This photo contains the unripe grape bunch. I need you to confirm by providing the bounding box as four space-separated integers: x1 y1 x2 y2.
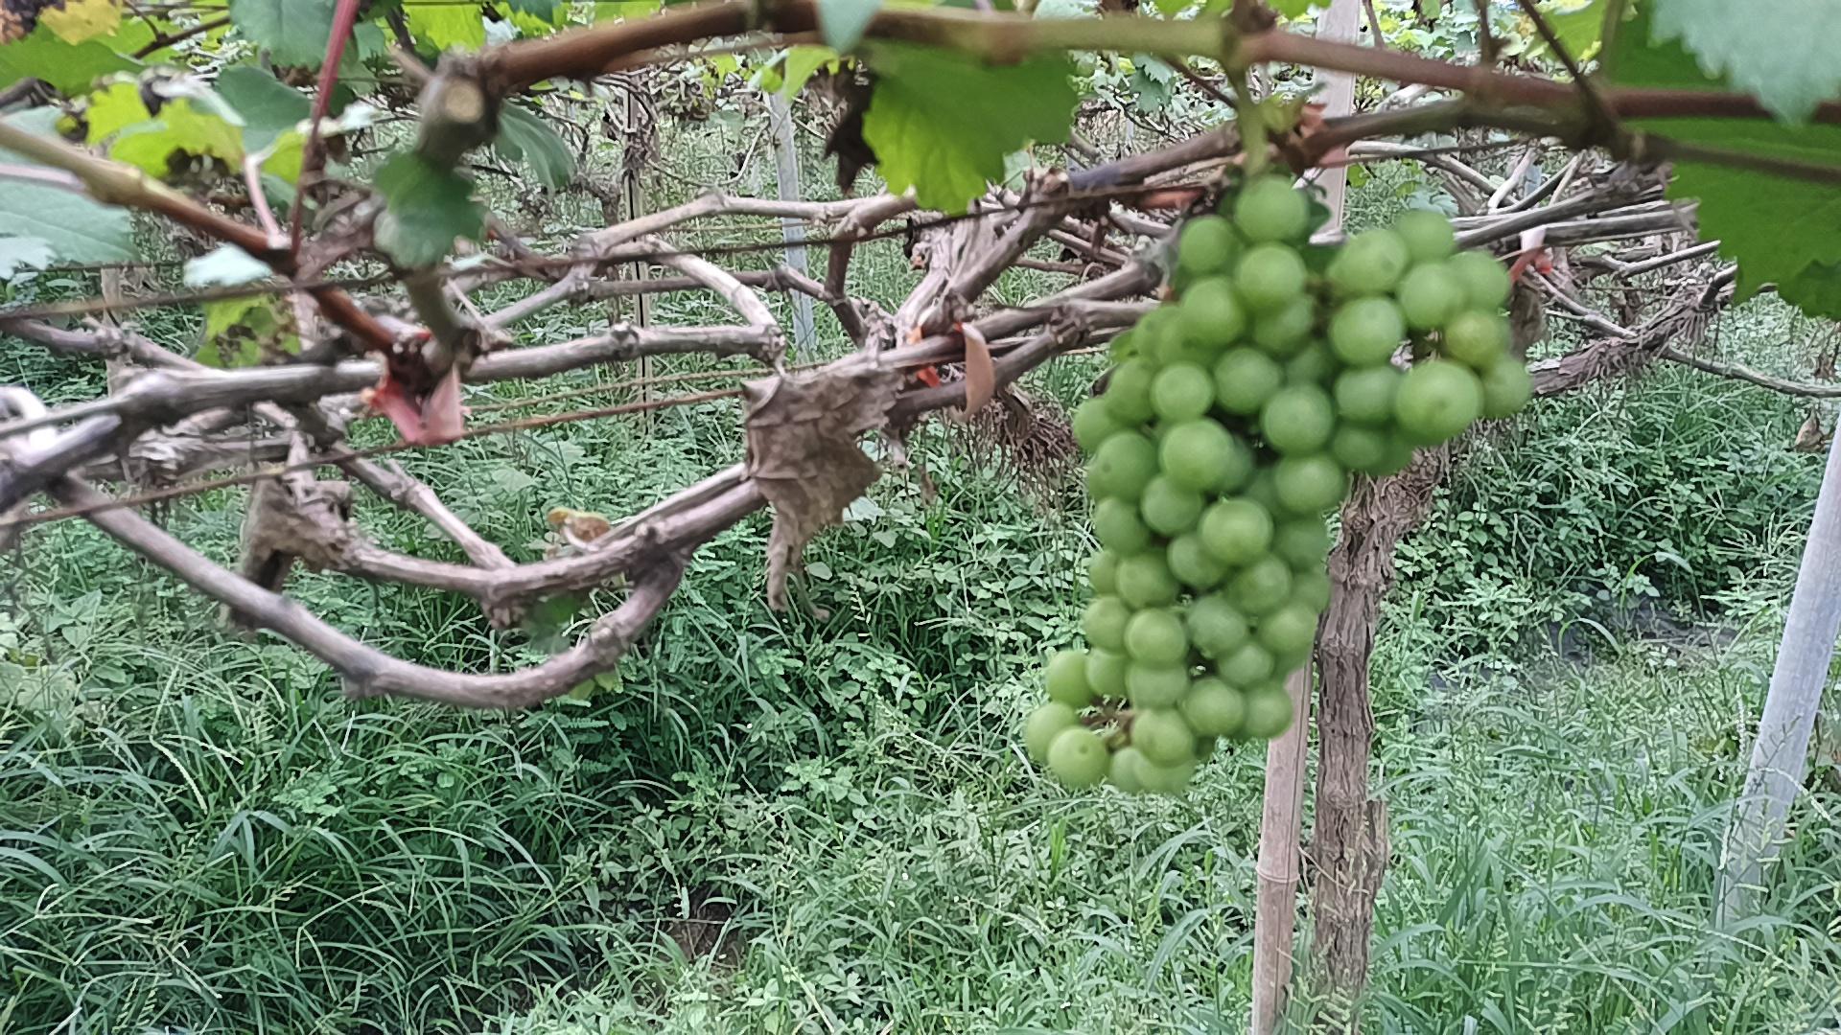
1025 176 1530 793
